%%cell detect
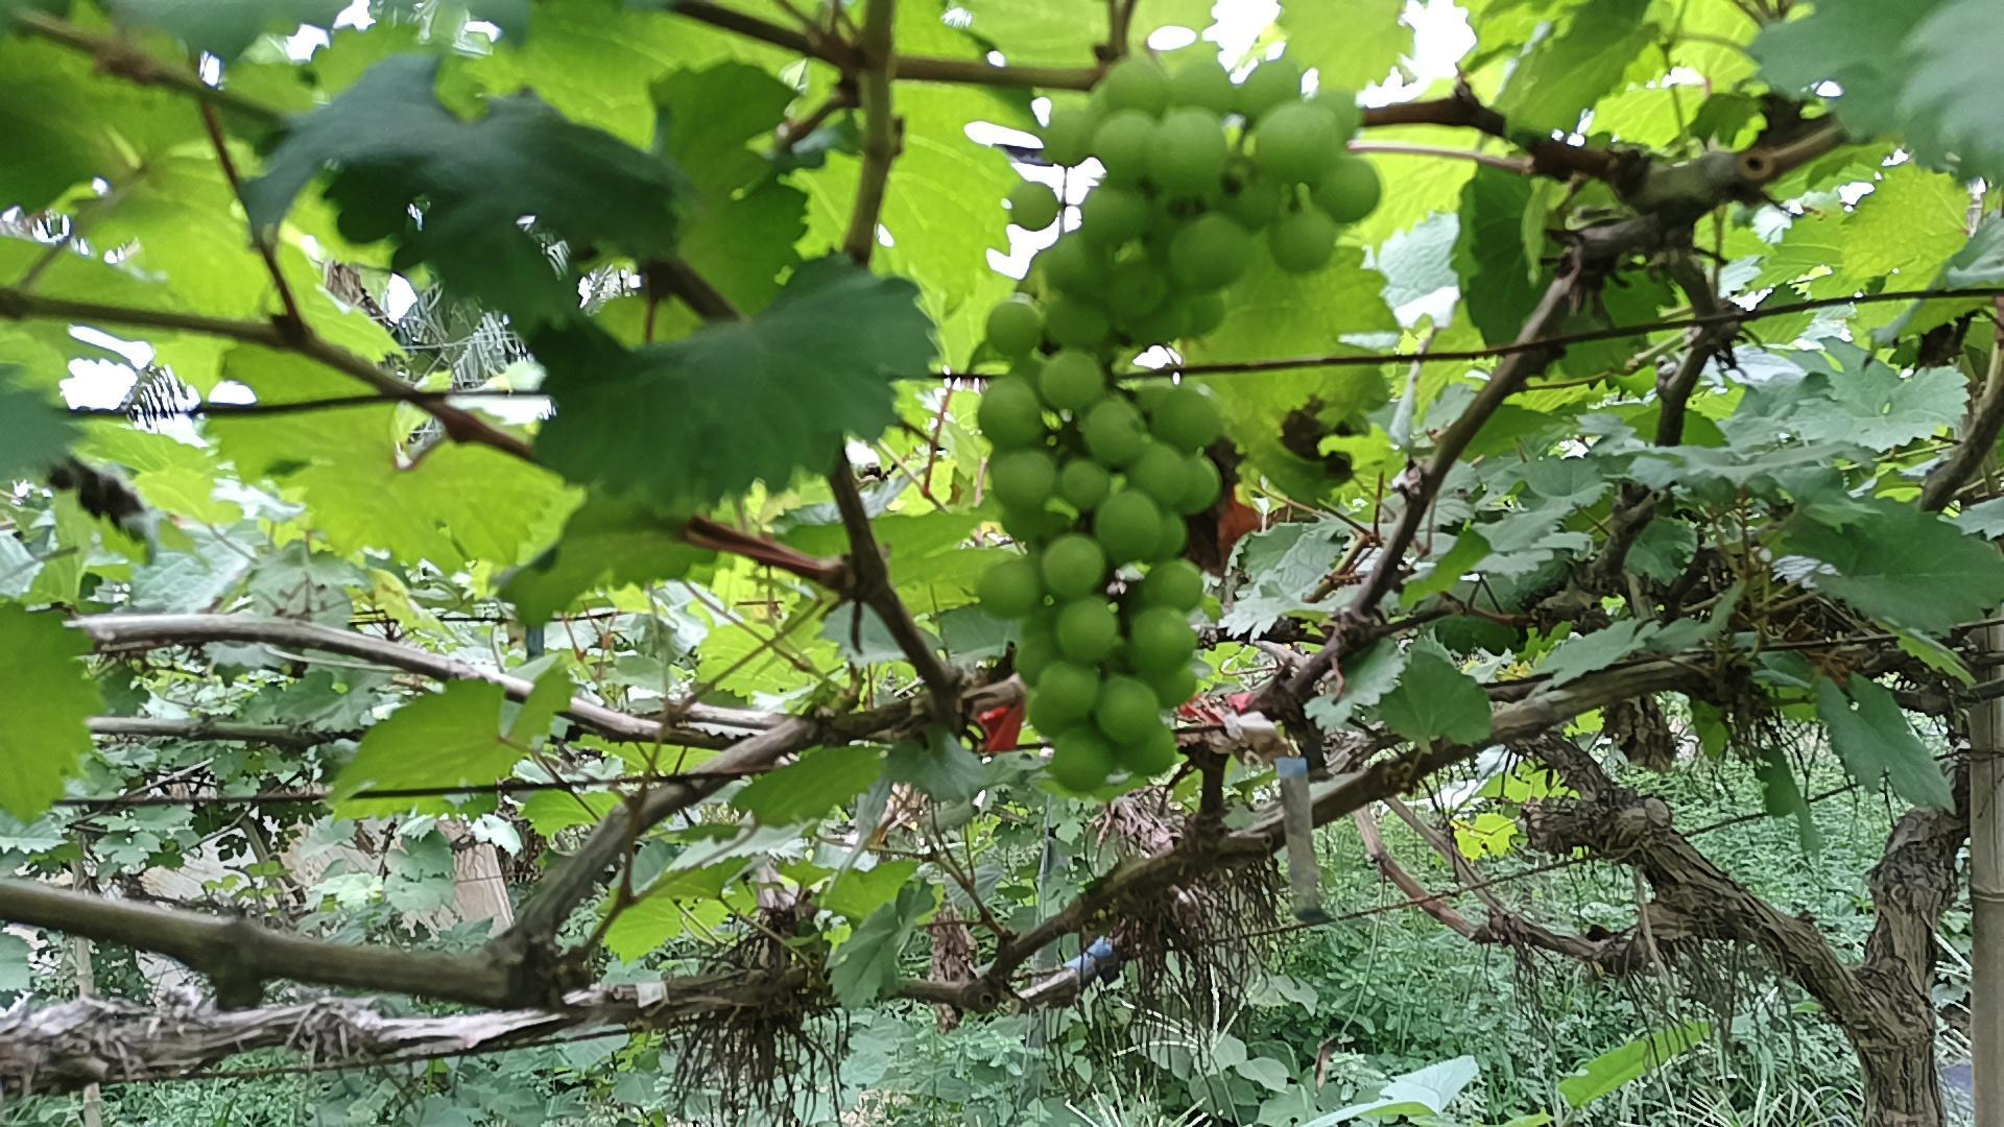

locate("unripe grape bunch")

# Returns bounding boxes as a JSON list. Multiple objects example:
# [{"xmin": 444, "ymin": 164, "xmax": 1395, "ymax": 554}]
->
[{"xmin": 976, "ymin": 50, "xmax": 1380, "ymax": 795}]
